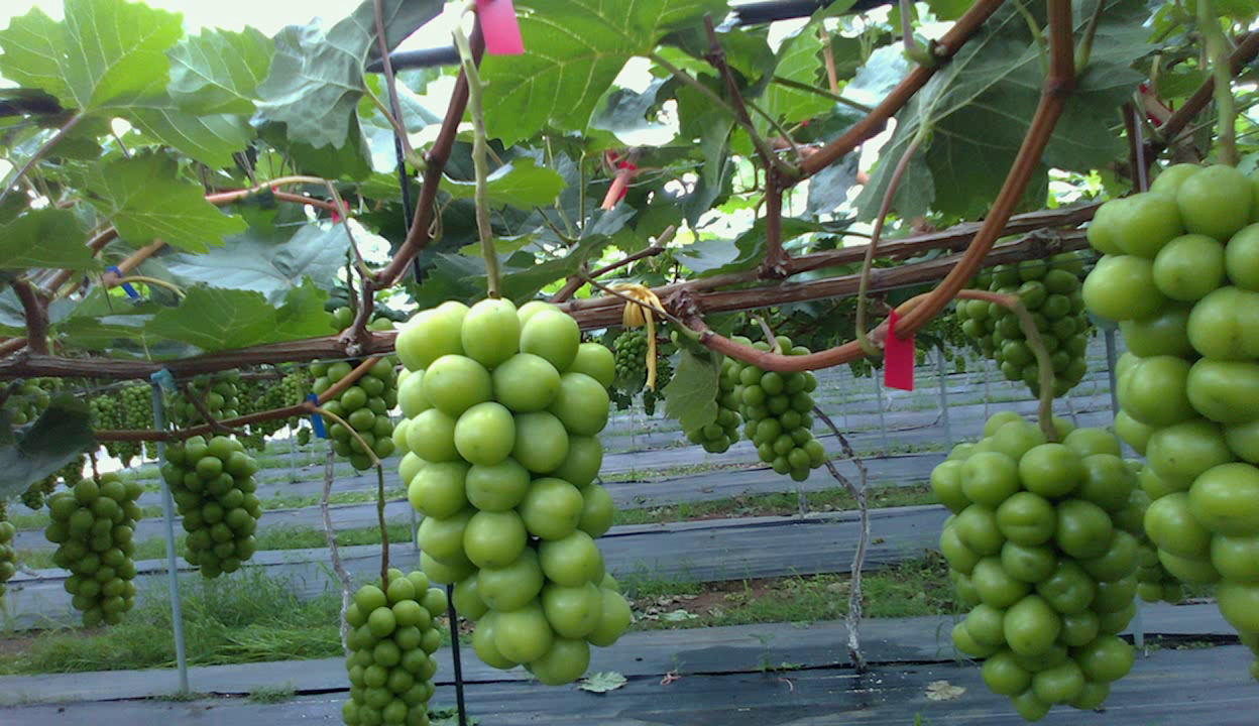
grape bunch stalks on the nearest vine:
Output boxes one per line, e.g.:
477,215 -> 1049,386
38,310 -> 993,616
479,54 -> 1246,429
1197,0 -> 1240,161
452,14 -> 504,297
894,288 -> 1058,439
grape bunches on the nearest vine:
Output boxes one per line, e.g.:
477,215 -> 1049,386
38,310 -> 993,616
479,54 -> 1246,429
1084,161 -> 1258,634
930,409 -> 1145,722
392,298 -> 633,683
